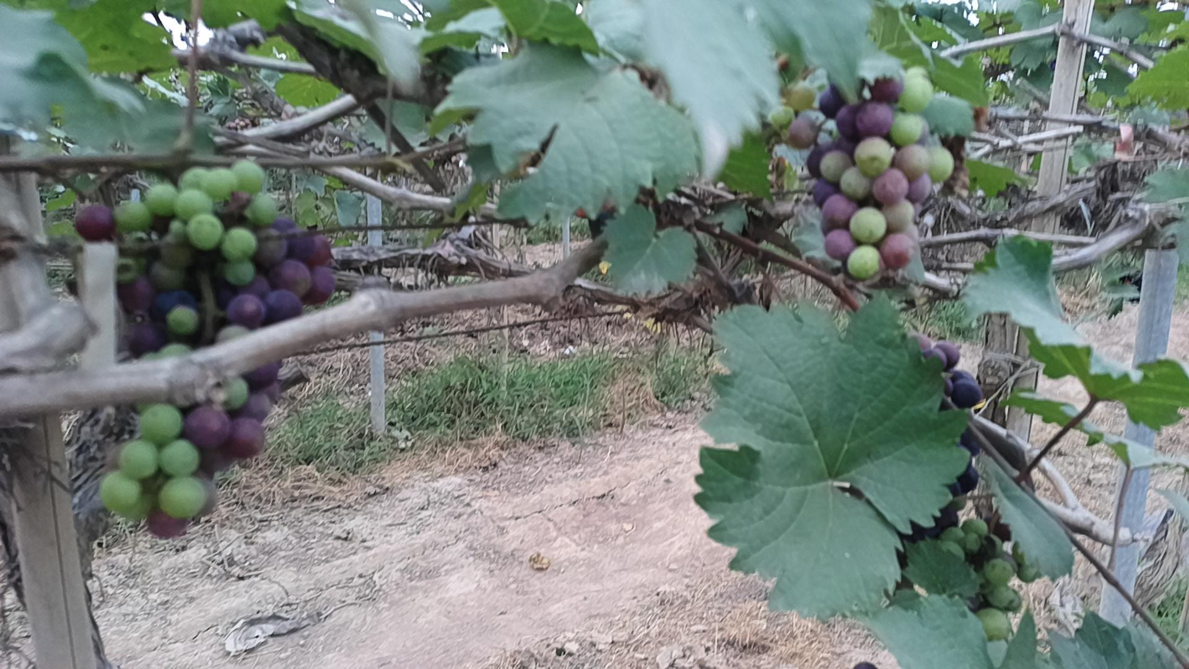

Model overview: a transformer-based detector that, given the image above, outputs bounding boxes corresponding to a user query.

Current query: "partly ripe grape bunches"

[773,68,952,281]
[74,160,334,538]
[901,334,1035,641]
